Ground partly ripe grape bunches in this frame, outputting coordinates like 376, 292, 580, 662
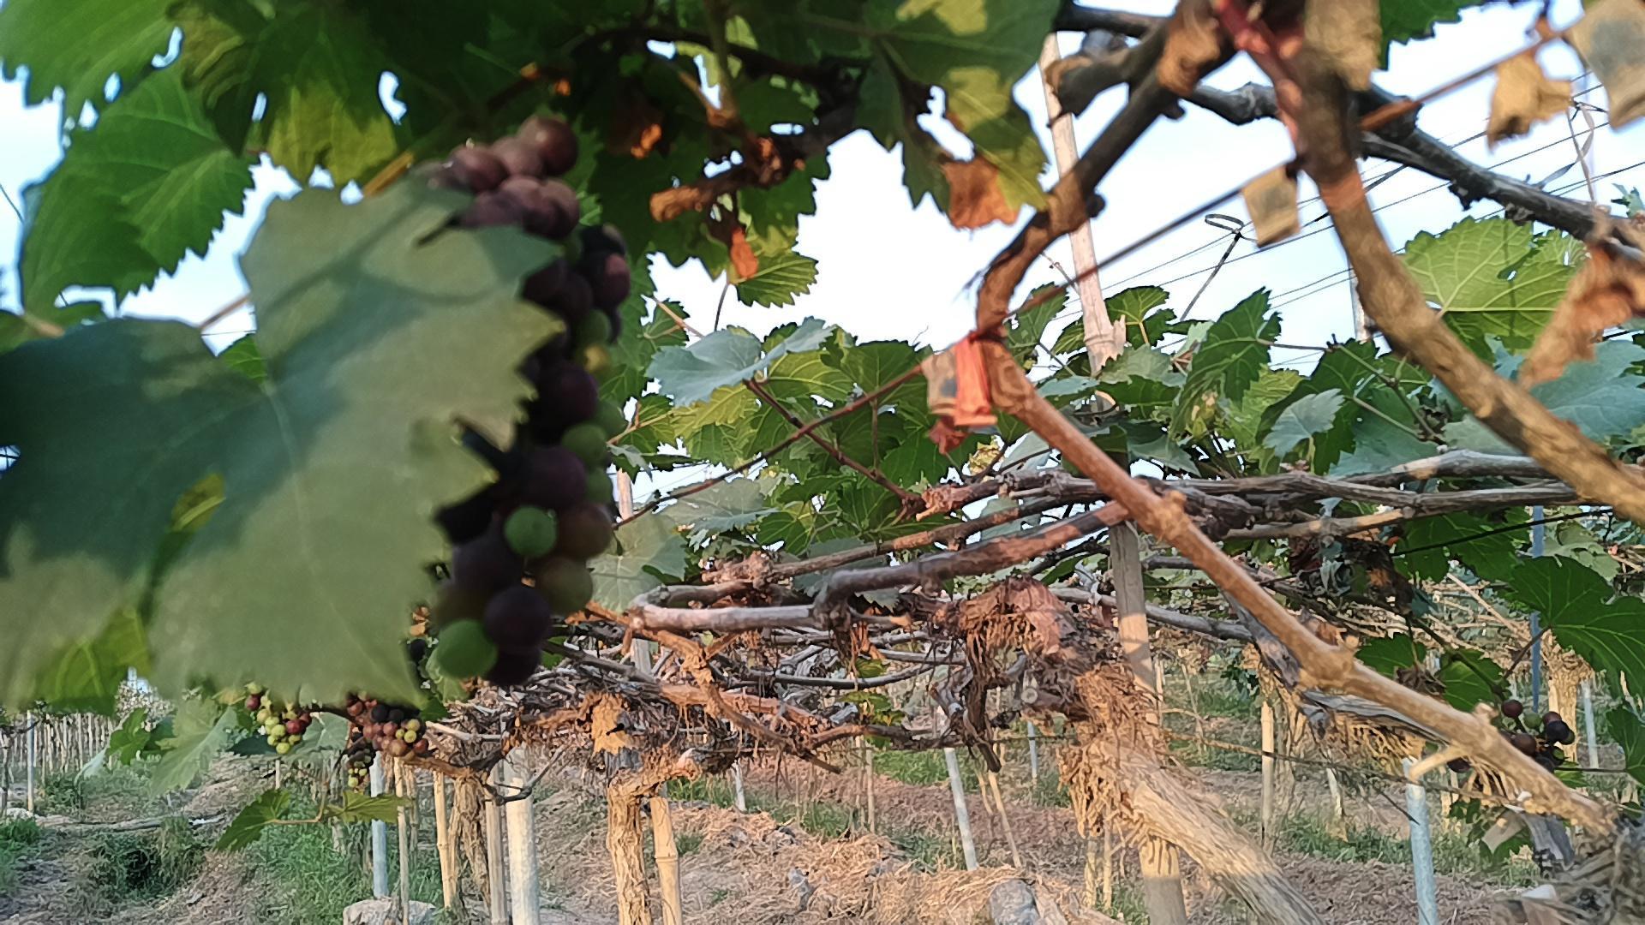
342, 696, 428, 789
244, 683, 313, 755
1501, 698, 1573, 772
427, 116, 630, 683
